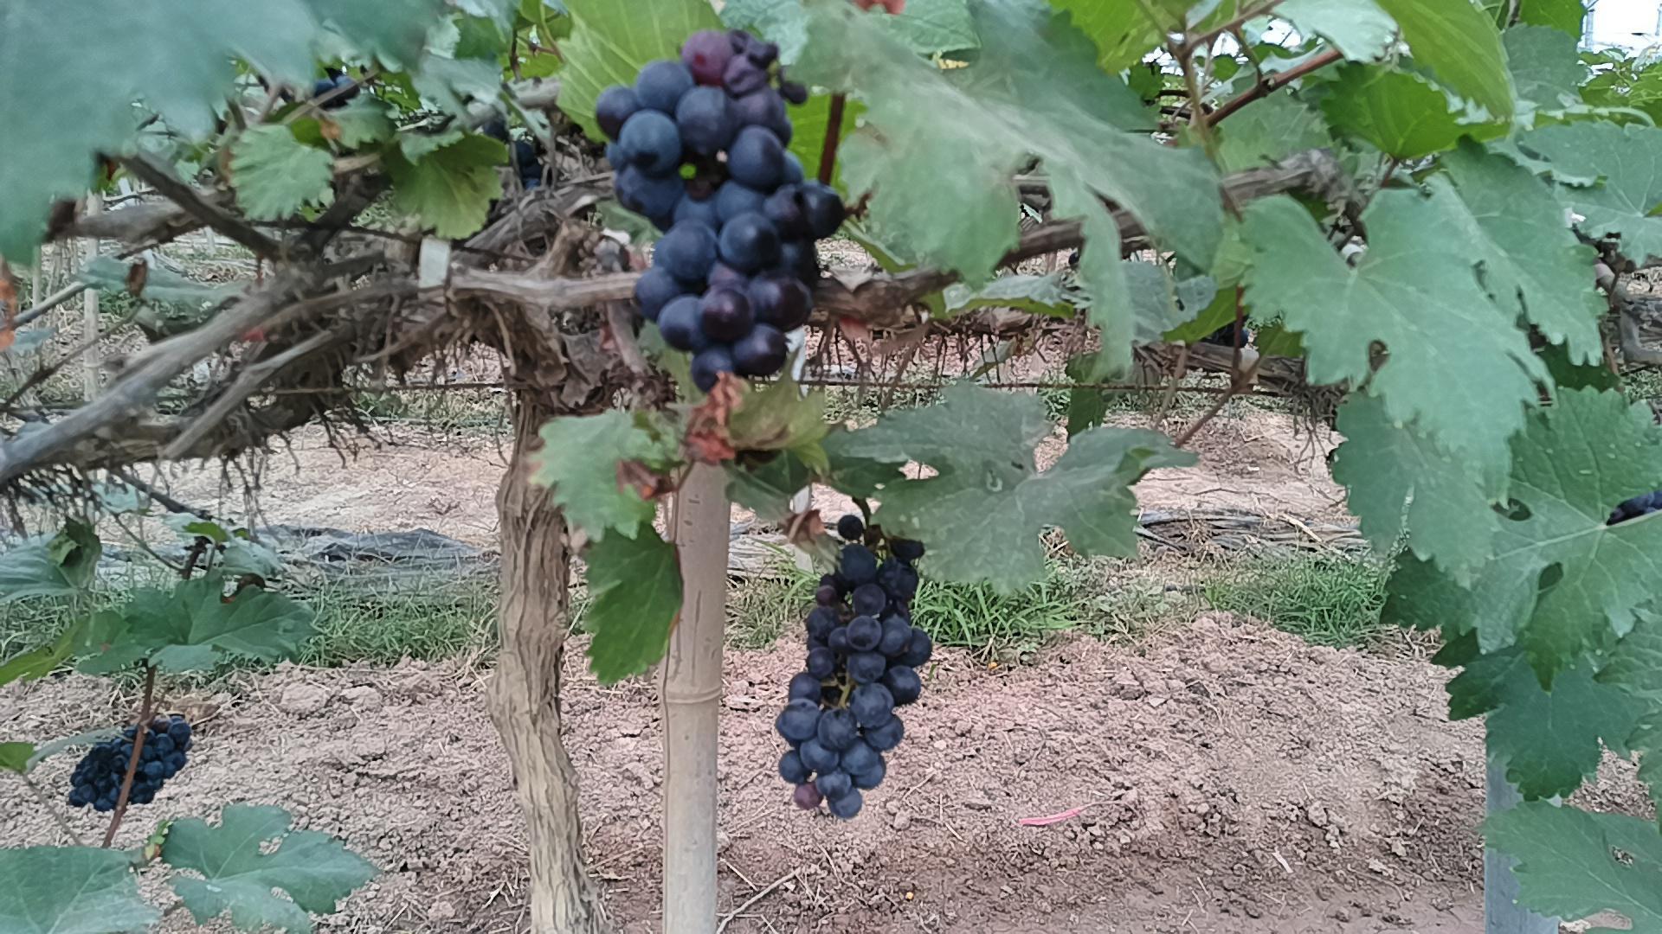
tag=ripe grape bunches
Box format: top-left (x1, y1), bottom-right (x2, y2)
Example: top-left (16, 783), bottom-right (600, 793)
top-left (776, 515), bottom-right (931, 818)
top-left (596, 29), bottom-right (846, 391)
top-left (61, 711), bottom-right (192, 815)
